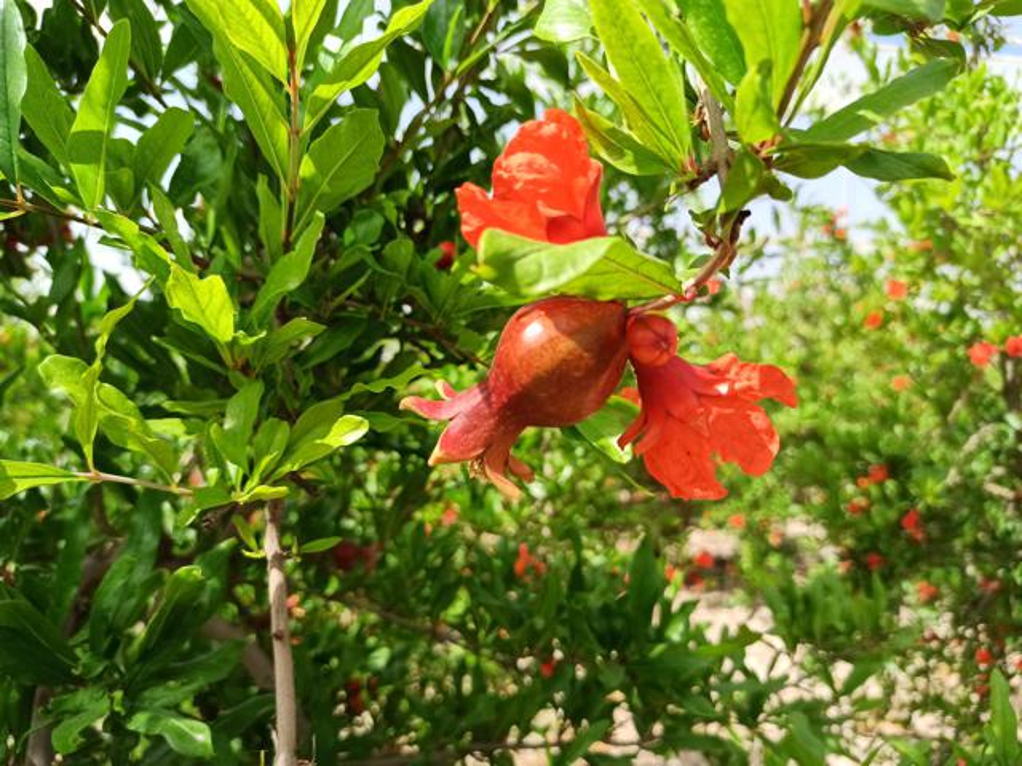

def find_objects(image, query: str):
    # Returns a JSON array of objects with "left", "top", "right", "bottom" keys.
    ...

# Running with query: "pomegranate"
[{"left": 399, "top": 295, "right": 629, "bottom": 498}]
